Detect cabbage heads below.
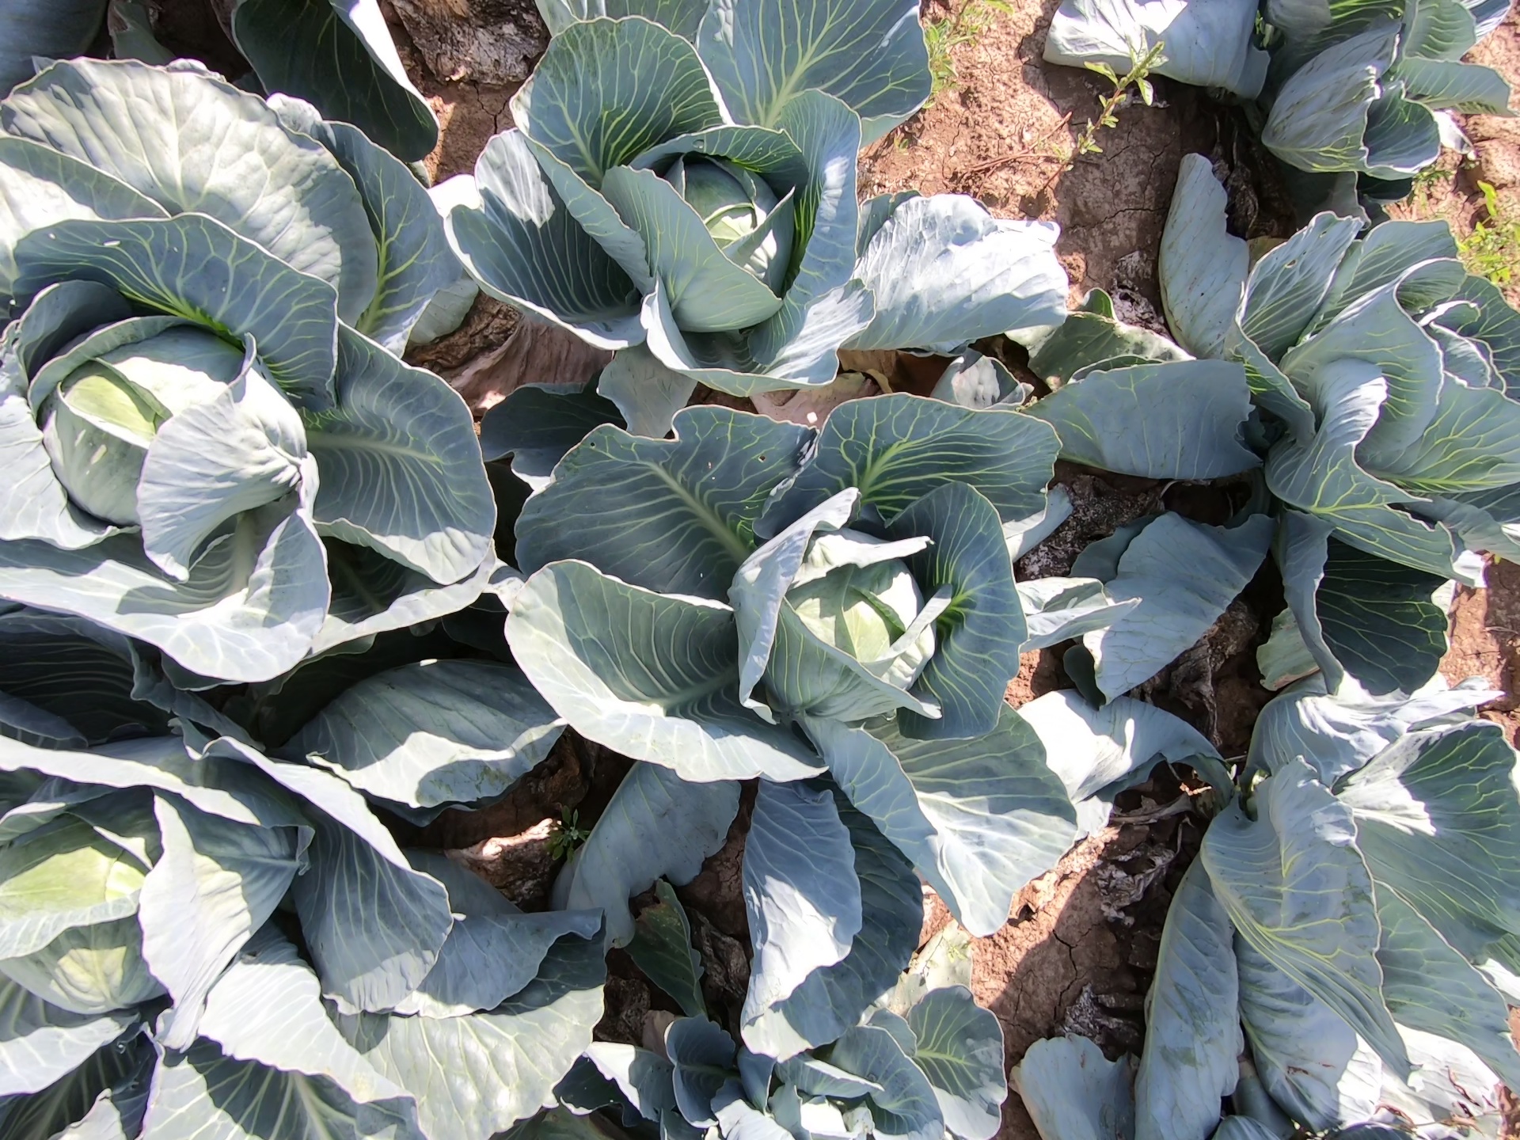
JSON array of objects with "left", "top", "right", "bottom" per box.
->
[
  {"left": 762, "top": 532, "right": 921, "bottom": 712},
  {"left": 4, "top": 785, "right": 257, "bottom": 1011},
  {"left": 38, "top": 317, "right": 279, "bottom": 521},
  {"left": 655, "top": 164, "right": 785, "bottom": 297}
]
